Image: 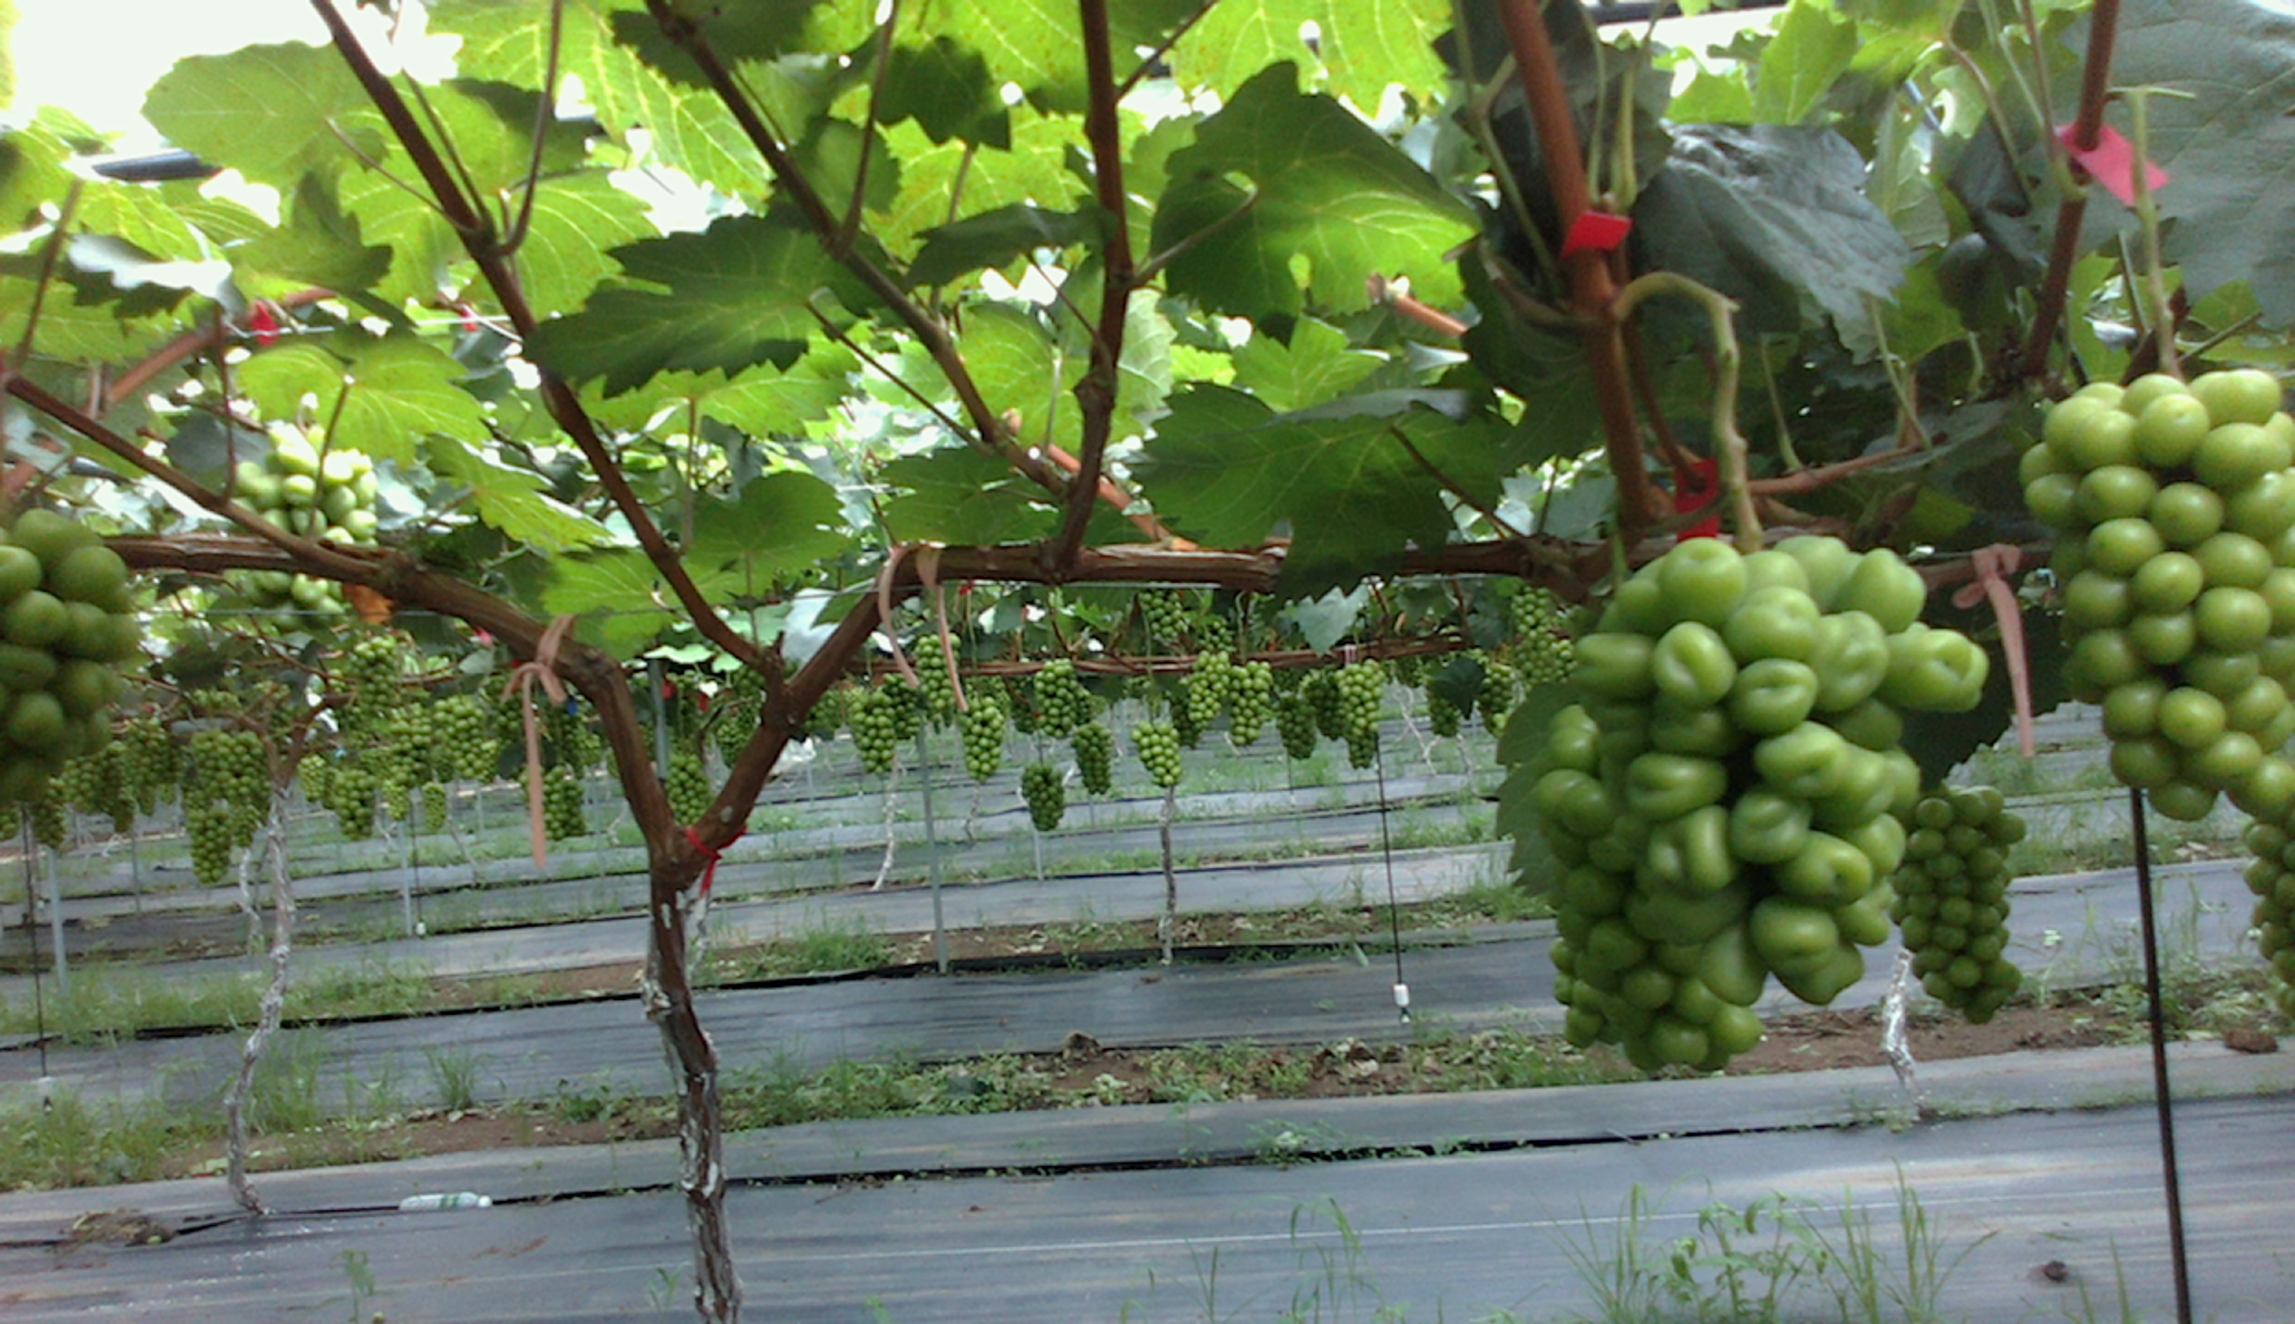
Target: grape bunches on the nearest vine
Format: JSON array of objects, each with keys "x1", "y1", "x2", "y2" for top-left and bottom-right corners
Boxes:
[
  {"x1": 2, "y1": 511, "x2": 145, "y2": 805},
  {"x1": 2017, "y1": 370, "x2": 2293, "y2": 822},
  {"x1": 1532, "y1": 706, "x2": 1769, "y2": 1076},
  {"x1": 1570, "y1": 535, "x2": 1986, "y2": 1013}
]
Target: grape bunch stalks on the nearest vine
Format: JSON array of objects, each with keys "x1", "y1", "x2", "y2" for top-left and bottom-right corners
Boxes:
[
  {"x1": 1615, "y1": 270, "x2": 1764, "y2": 554},
  {"x1": 2104, "y1": 88, "x2": 2185, "y2": 381},
  {"x1": 1604, "y1": 522, "x2": 1626, "y2": 583}
]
